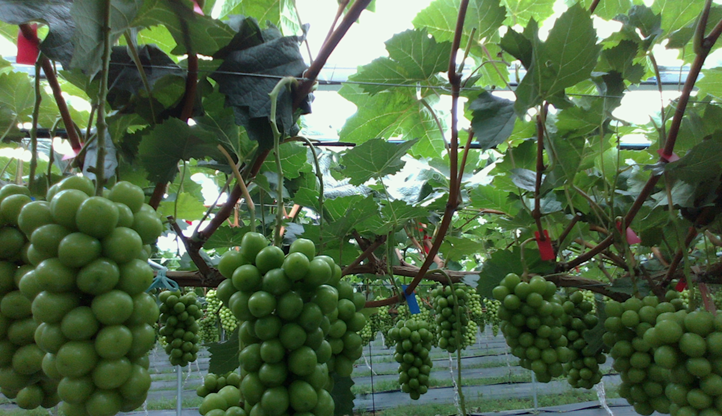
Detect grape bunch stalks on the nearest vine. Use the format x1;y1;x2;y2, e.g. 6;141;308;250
521;237;536;282
615;216;642;299
87;1;112;196
267;76;298;247
664;170;694;313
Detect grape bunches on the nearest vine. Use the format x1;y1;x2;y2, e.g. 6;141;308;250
215;232;339;415
17;174;163;415
492;272;570;383
1;183;61;410
324;263;366;377
602;296;675;415
644;310;721;415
